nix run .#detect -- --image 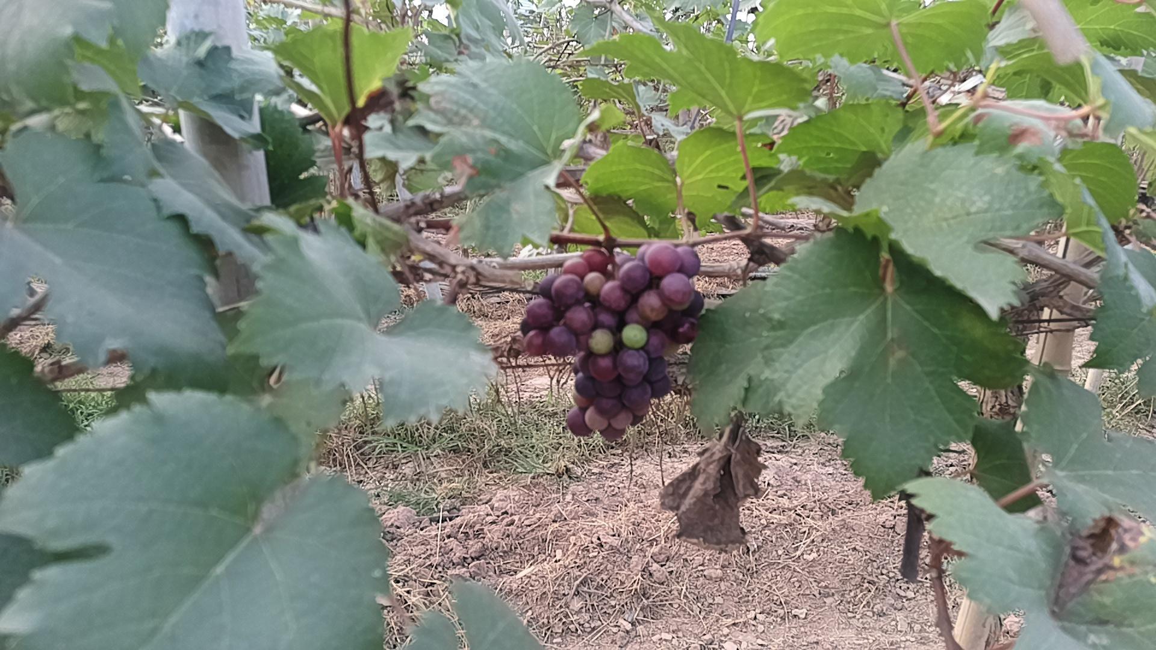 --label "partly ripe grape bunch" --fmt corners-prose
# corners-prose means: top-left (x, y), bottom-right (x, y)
top-left (521, 243), bottom-right (704, 440)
